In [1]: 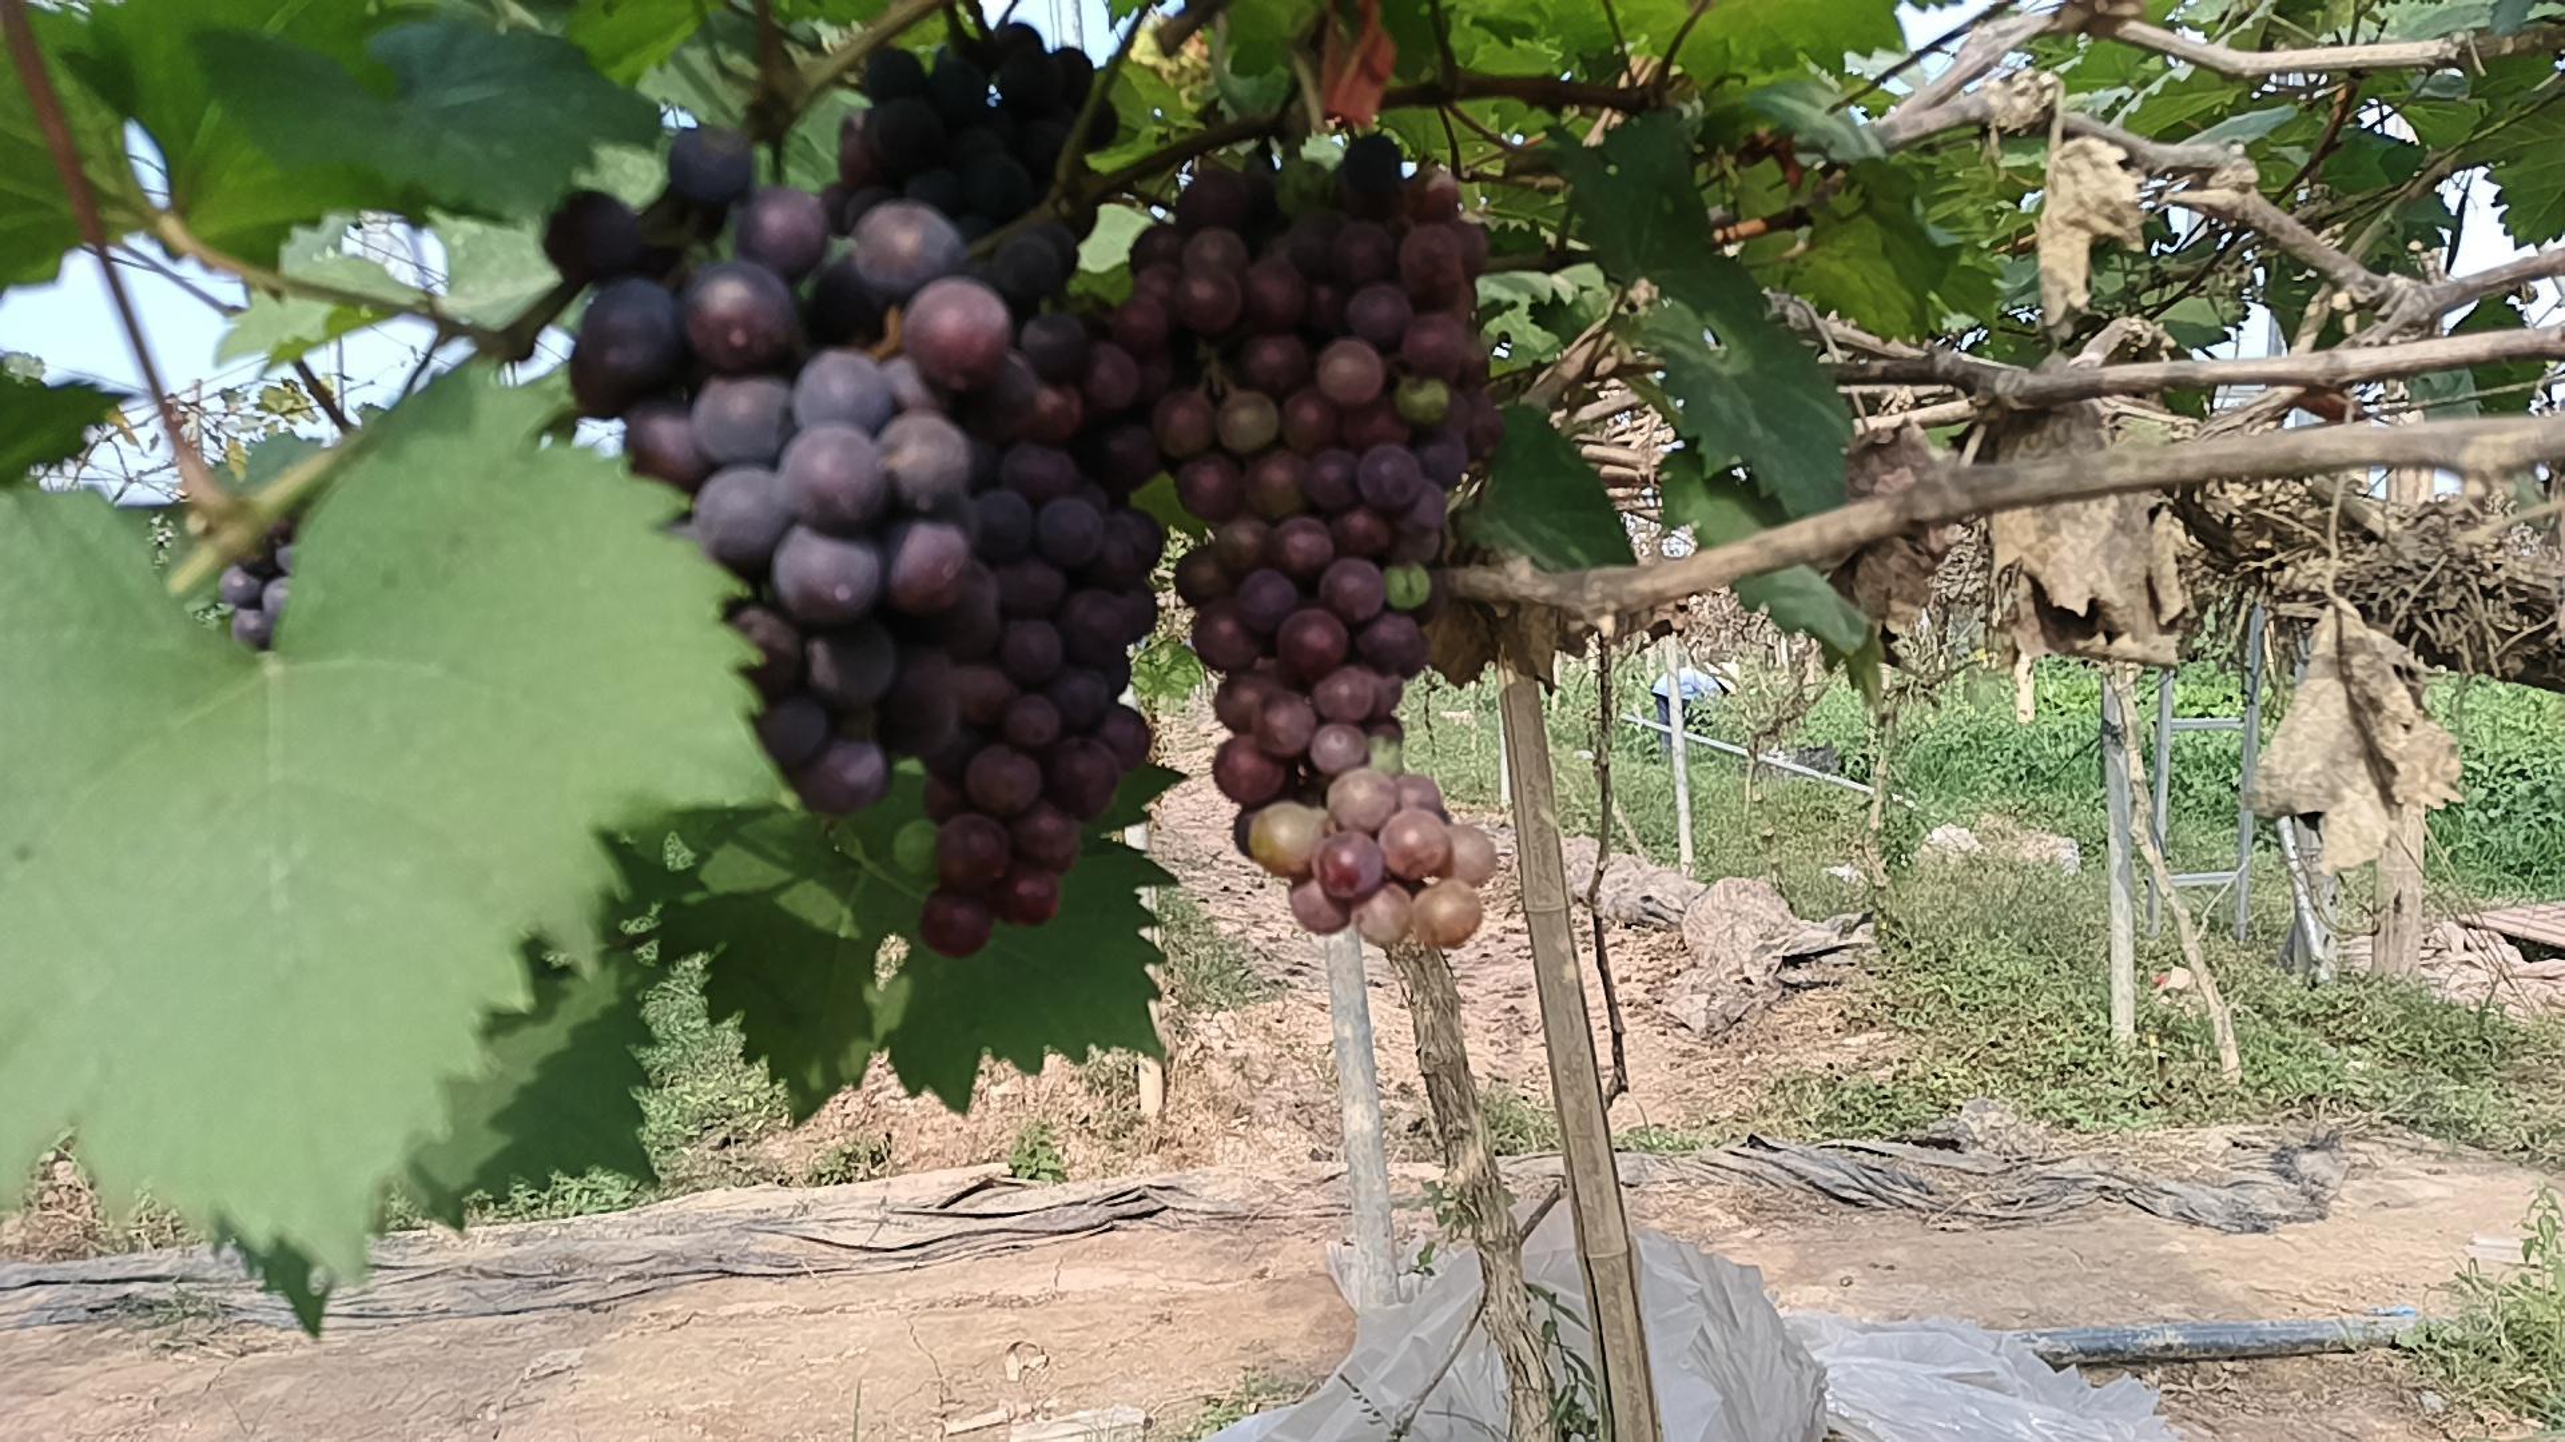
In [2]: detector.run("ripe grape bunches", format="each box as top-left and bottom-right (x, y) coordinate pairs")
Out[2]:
(220, 535), (291, 650)
(537, 124), (1006, 814)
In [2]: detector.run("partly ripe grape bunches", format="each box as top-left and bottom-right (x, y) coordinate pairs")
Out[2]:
(836, 19), (1166, 956)
(1130, 138), (1499, 951)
